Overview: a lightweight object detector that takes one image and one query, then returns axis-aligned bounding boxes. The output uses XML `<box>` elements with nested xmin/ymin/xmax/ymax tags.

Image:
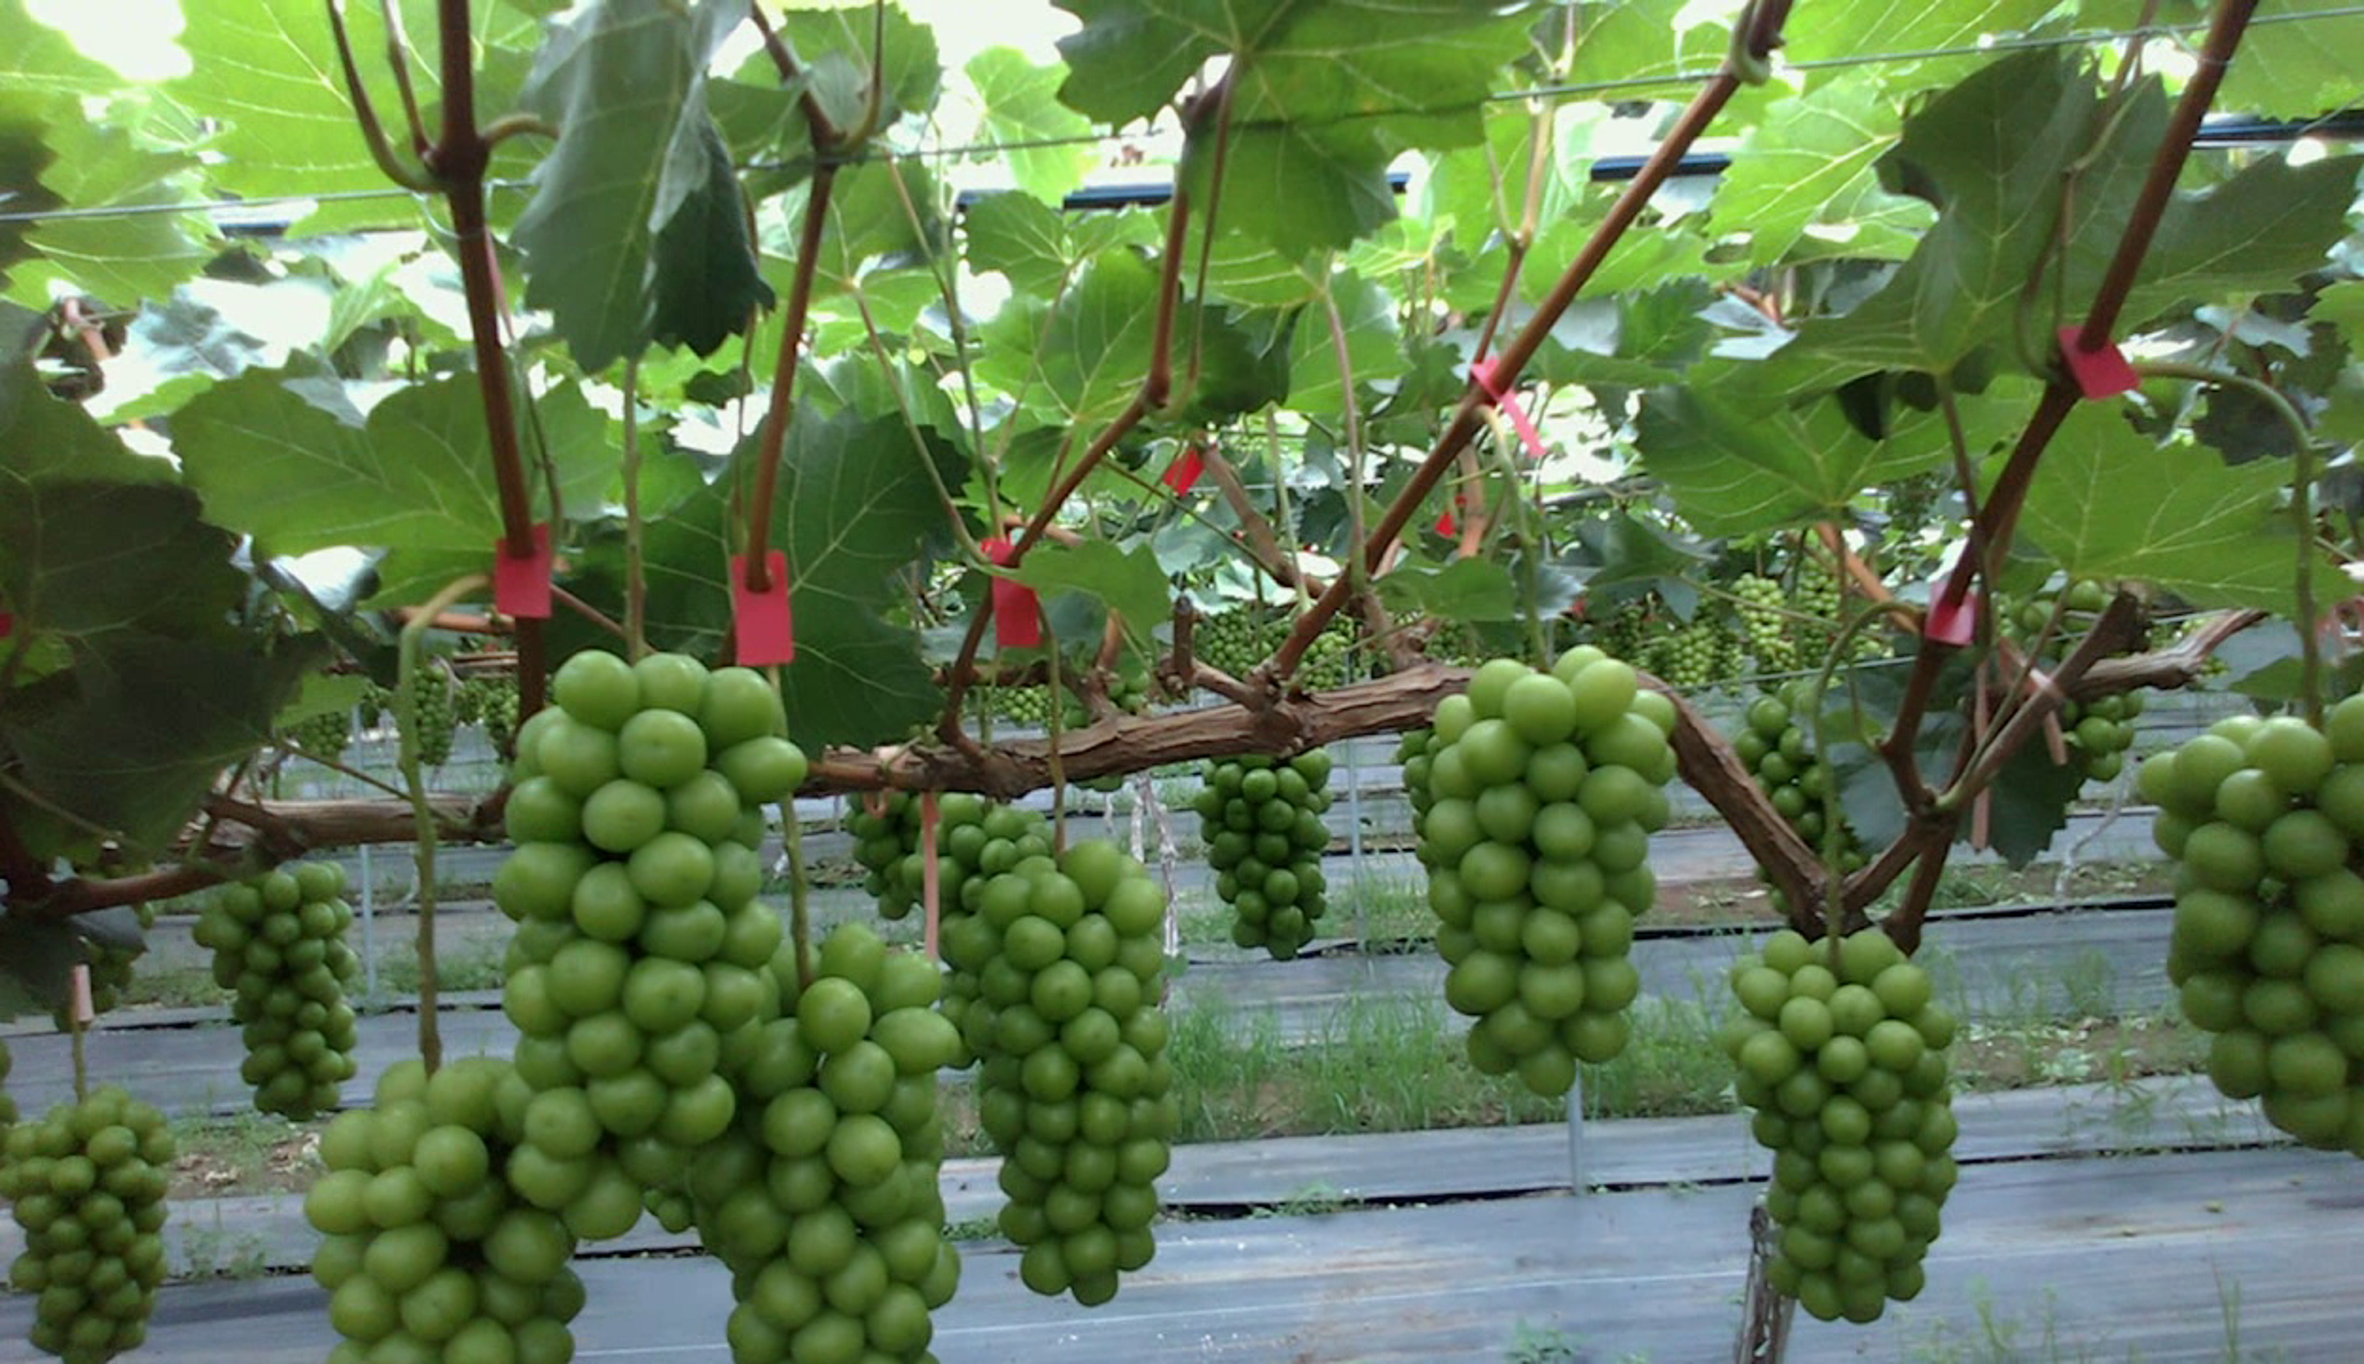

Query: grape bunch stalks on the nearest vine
<box><xmin>769</xmin><ymin>665</ymin><xmax>815</xmax><ymax>985</ymax></box>
<box><xmin>1809</xmin><ymin>597</ymin><xmax>1923</xmax><ymax>983</ymax></box>
<box><xmin>398</xmin><ymin>572</ymin><xmax>489</xmax><ymax>1080</ymax></box>
<box><xmin>1479</xmin><ymin>402</ymin><xmax>1549</xmax><ymax>673</ymax></box>
<box><xmin>1038</xmin><ymin>606</ymin><xmax>1066</xmax><ymax>870</ymax></box>
<box><xmin>2137</xmin><ymin>358</ymin><xmax>2322</xmax><ymax>733</ymax></box>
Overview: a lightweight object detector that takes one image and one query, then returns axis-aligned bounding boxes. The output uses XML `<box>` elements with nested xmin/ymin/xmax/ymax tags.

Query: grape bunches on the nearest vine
<box><xmin>301</xmin><ymin>1055</ymin><xmax>589</xmax><ymax>1362</ymax></box>
<box><xmin>949</xmin><ymin>837</ymin><xmax>1180</xmax><ymax>1305</ymax></box>
<box><xmin>686</xmin><ymin>921</ymin><xmax>964</xmax><ymax>1362</ymax></box>
<box><xmin>1426</xmin><ymin>644</ymin><xmax>1678</xmax><ymax>1097</ymax></box>
<box><xmin>494</xmin><ymin>650</ymin><xmax>807</xmax><ymax>1239</ymax></box>
<box><xmin>1720</xmin><ymin>930</ymin><xmax>1961</xmax><ymax>1322</ymax></box>
<box><xmin>2137</xmin><ymin>691</ymin><xmax>2362</xmax><ymax>1158</ymax></box>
